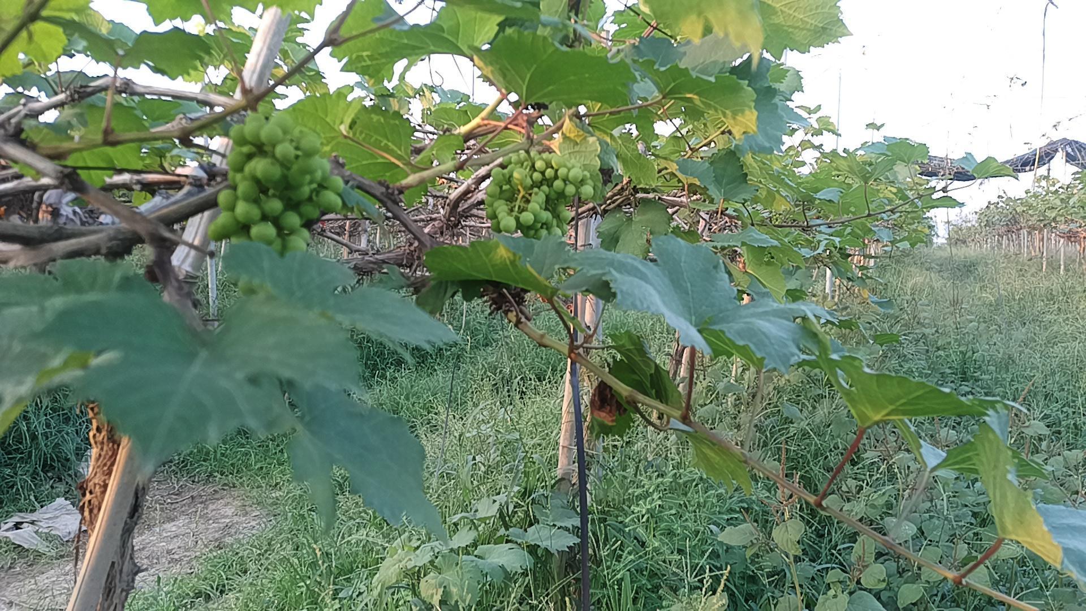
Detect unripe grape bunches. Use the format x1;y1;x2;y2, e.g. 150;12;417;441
486;151;599;238
208;113;344;298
